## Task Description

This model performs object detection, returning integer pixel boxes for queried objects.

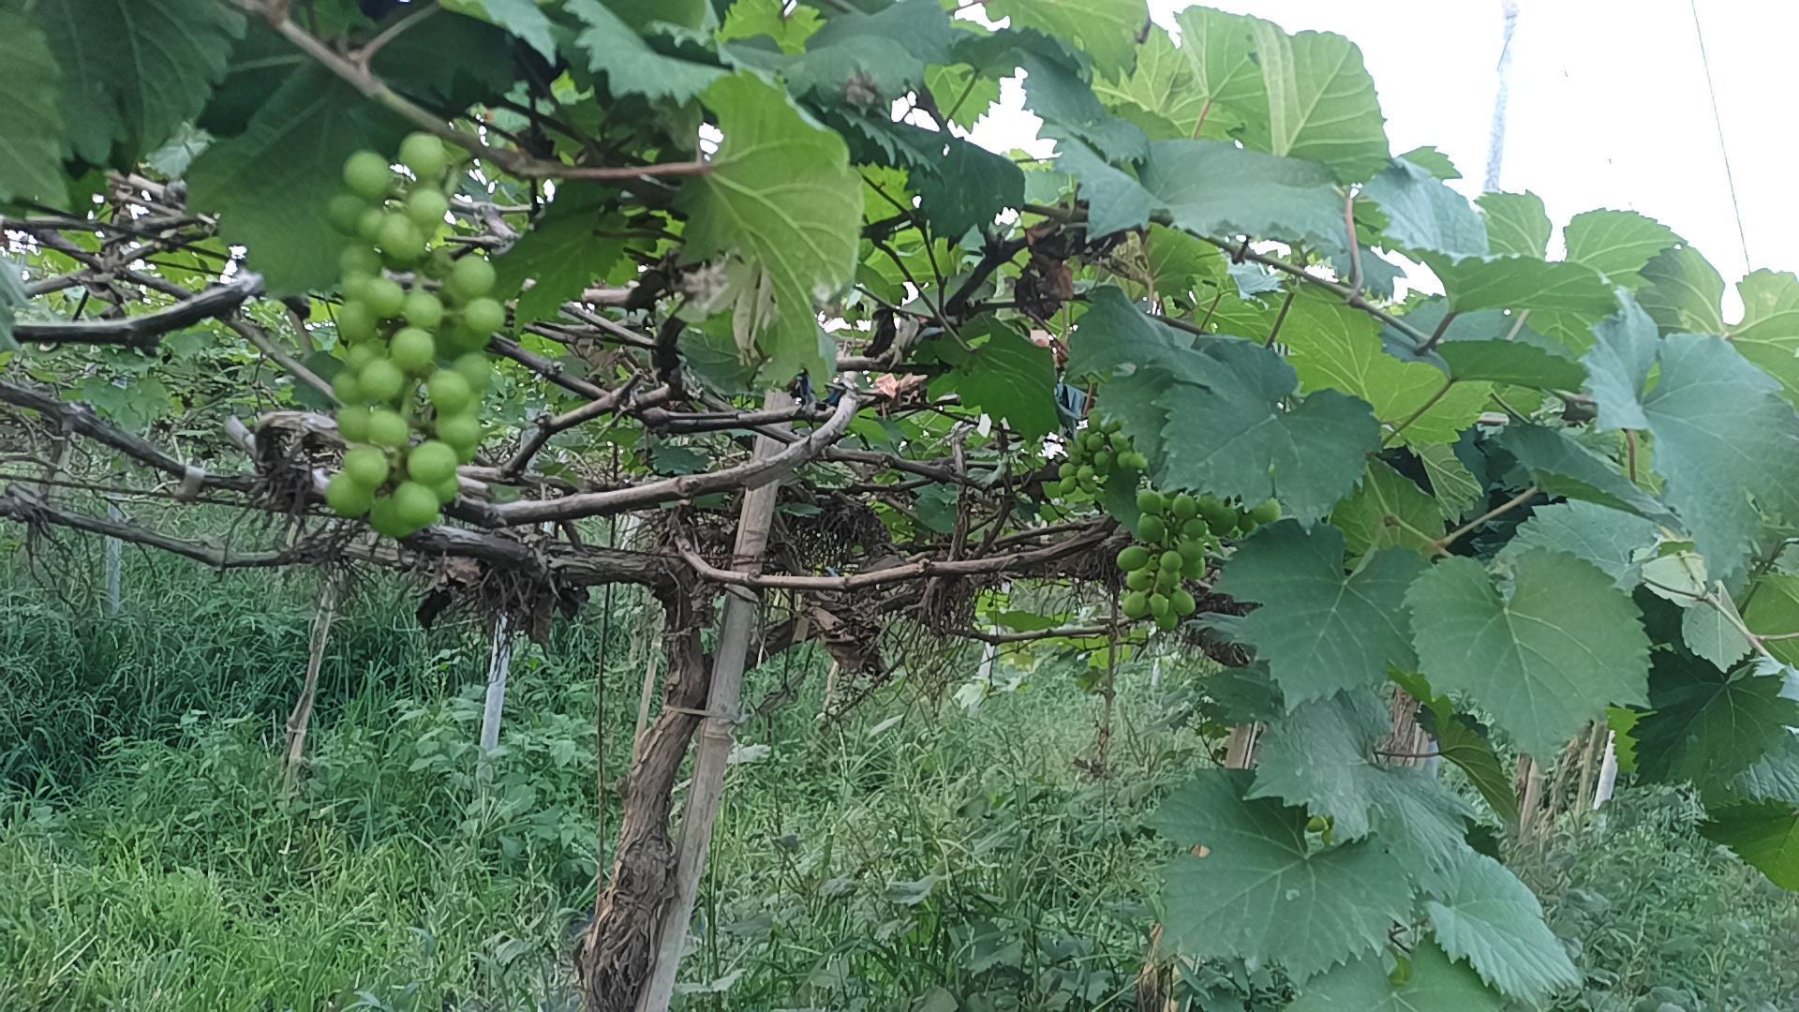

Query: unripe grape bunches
[1055,406,1150,496]
[1115,487,1285,634]
[326,133,503,537]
